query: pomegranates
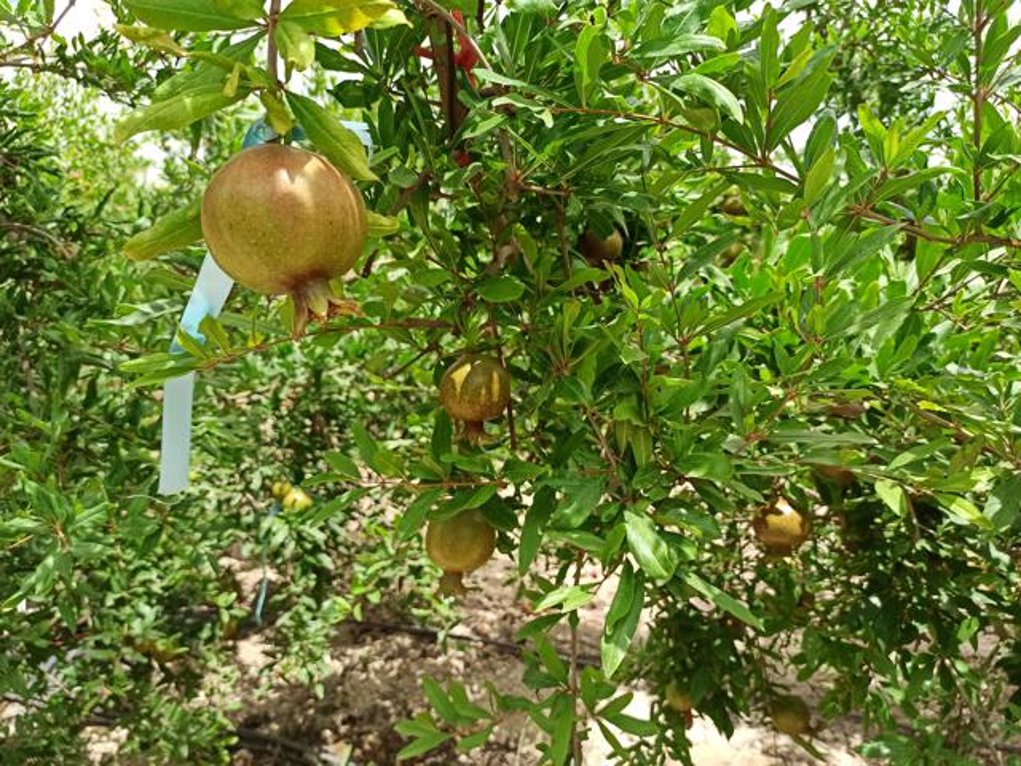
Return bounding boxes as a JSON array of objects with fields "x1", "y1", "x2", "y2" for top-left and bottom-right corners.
[
  {"x1": 199, "y1": 144, "x2": 369, "y2": 343},
  {"x1": 439, "y1": 354, "x2": 512, "y2": 445},
  {"x1": 271, "y1": 480, "x2": 294, "y2": 499},
  {"x1": 665, "y1": 685, "x2": 694, "y2": 729},
  {"x1": 424, "y1": 511, "x2": 496, "y2": 600},
  {"x1": 751, "y1": 495, "x2": 812, "y2": 551},
  {"x1": 772, "y1": 694, "x2": 823, "y2": 739},
  {"x1": 281, "y1": 490, "x2": 313, "y2": 509},
  {"x1": 578, "y1": 228, "x2": 622, "y2": 265}
]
